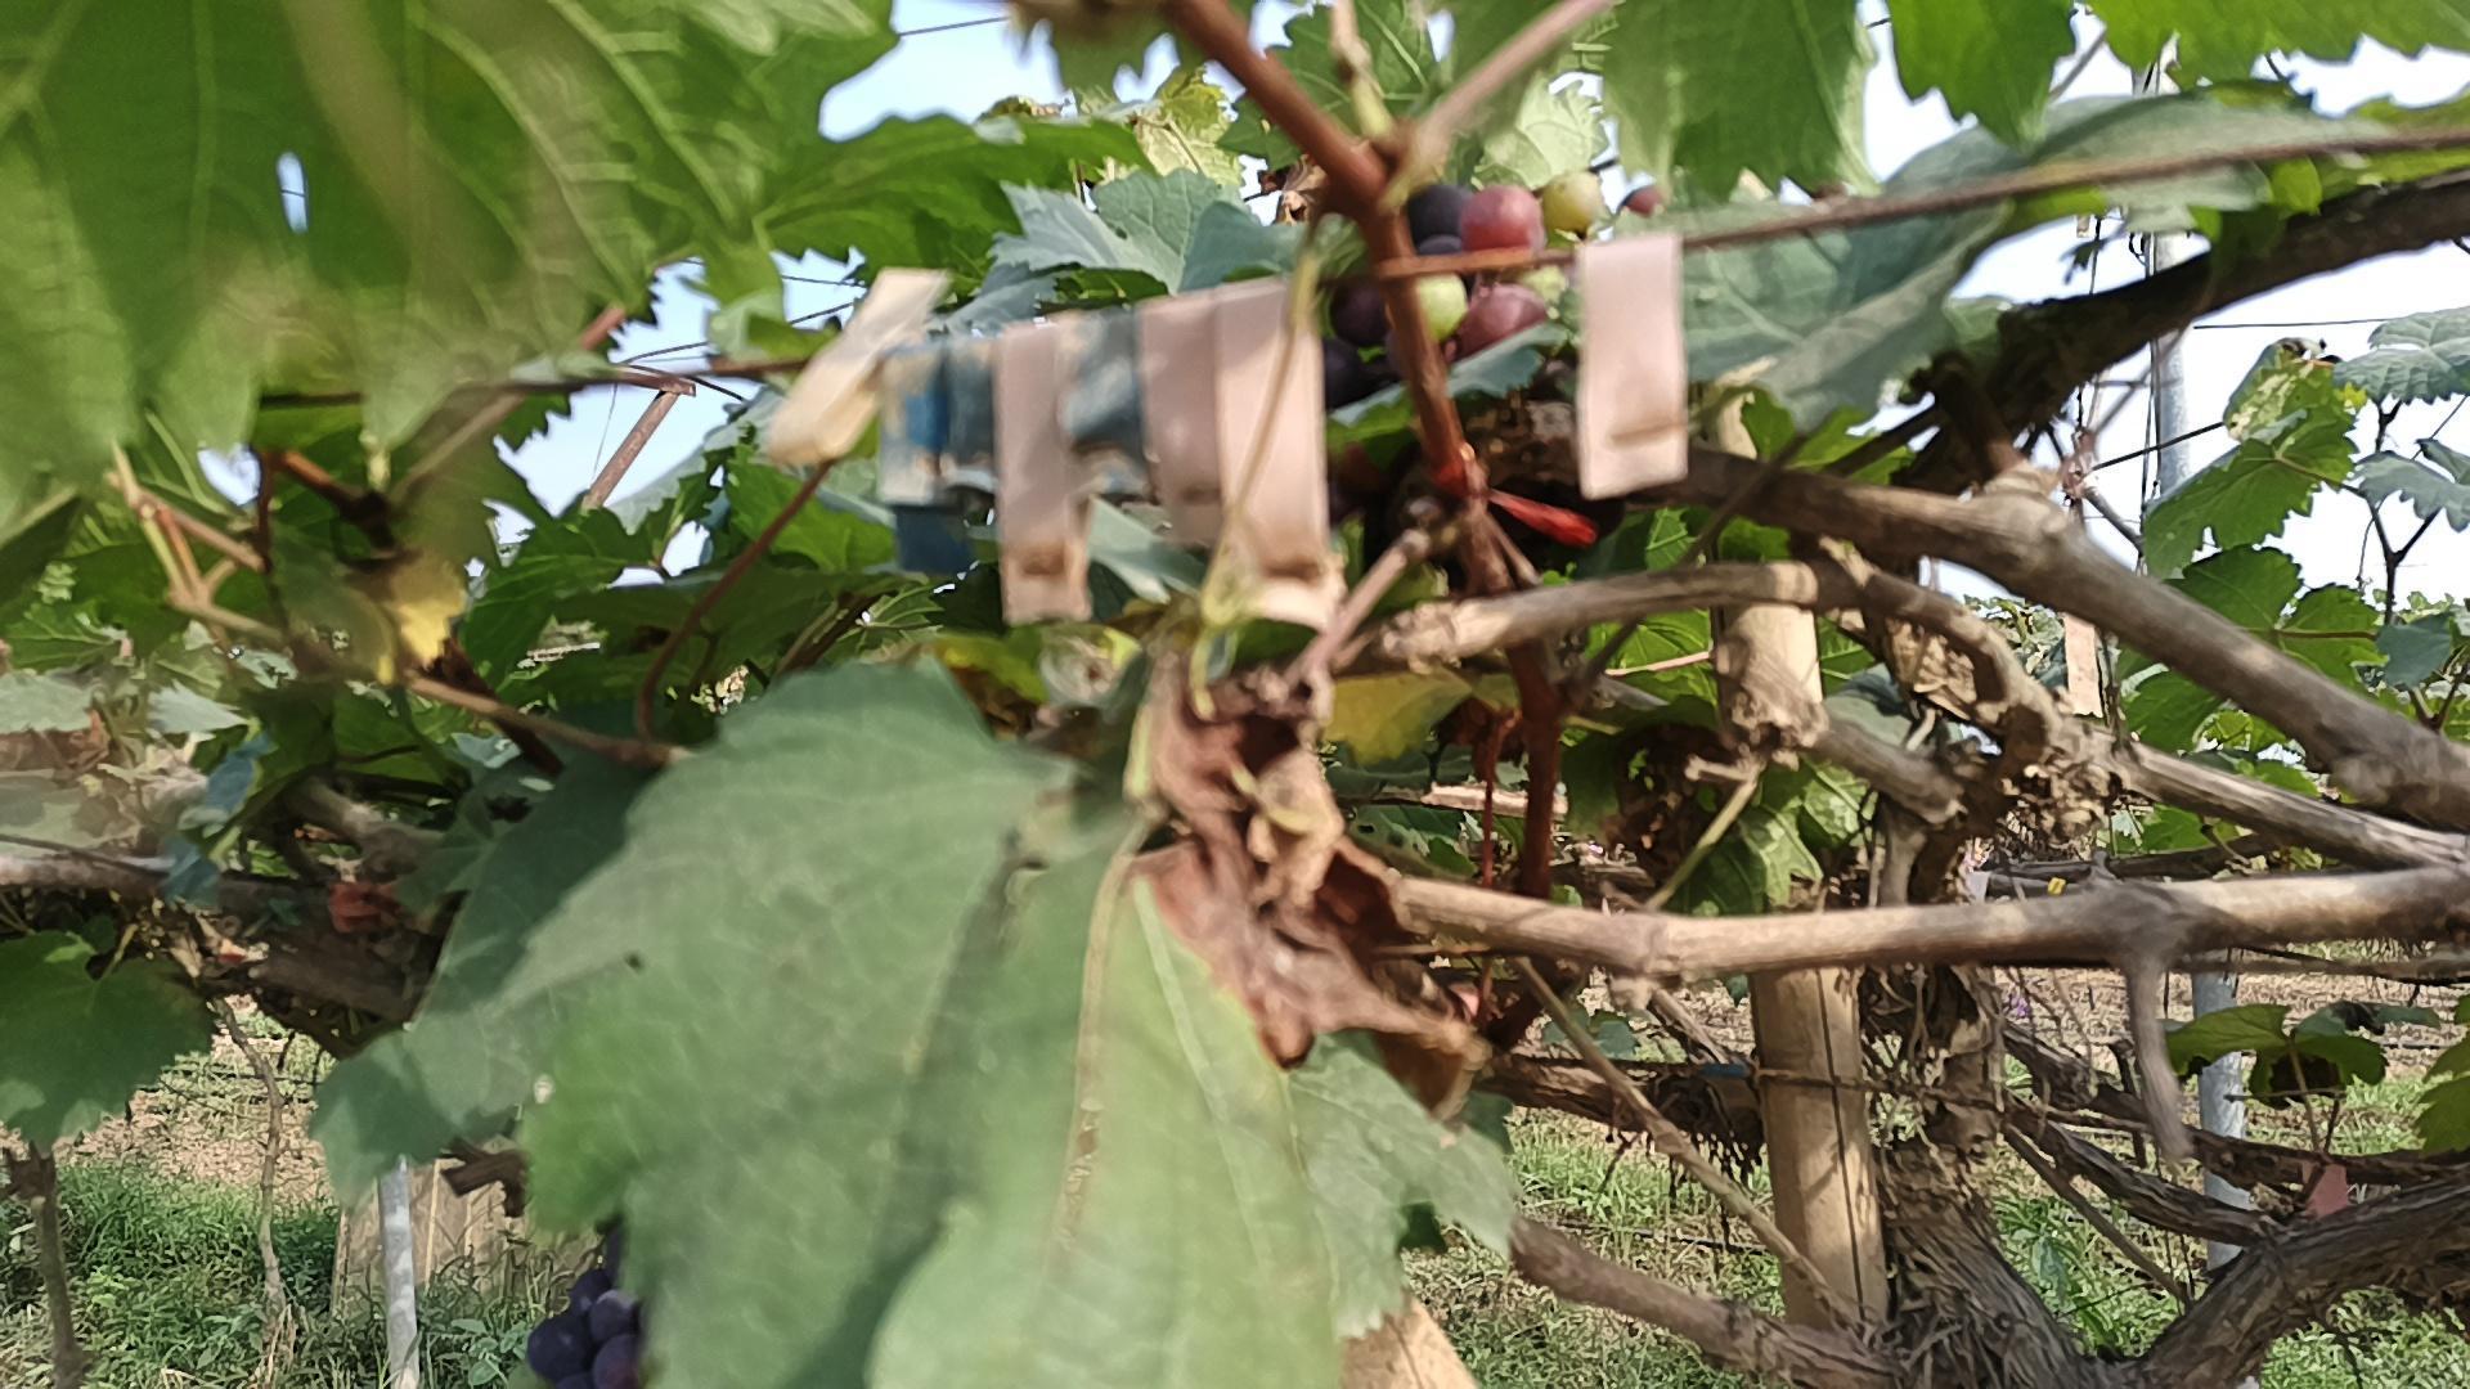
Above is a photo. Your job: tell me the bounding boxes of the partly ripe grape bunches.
[504,1222,646,1388]
[1324,168,1675,414]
